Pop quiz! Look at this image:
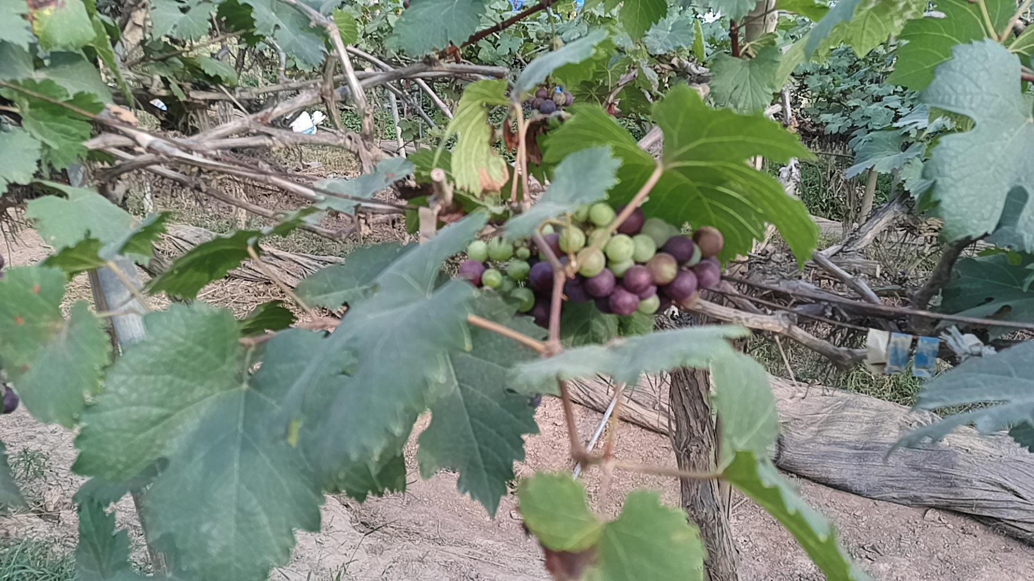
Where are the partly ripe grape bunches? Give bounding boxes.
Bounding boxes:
[526,202,725,329]
[459,235,540,312]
